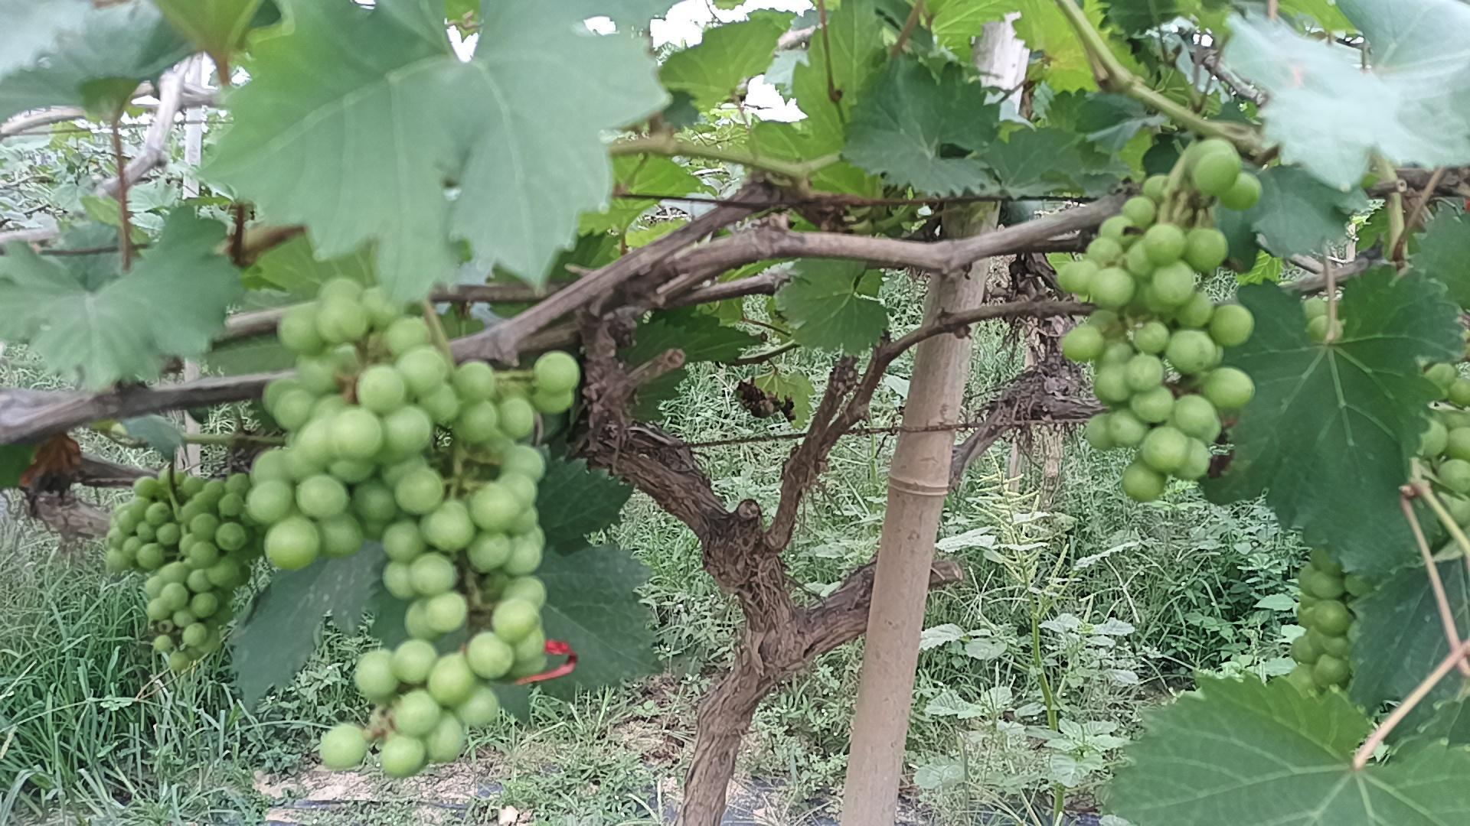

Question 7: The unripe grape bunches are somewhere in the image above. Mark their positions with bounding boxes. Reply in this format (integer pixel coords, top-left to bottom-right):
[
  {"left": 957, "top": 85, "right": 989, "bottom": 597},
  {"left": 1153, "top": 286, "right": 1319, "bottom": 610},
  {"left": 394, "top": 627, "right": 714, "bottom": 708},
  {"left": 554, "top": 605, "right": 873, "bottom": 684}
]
[
  {"left": 1057, "top": 138, "right": 1260, "bottom": 501},
  {"left": 1286, "top": 294, "right": 1469, "bottom": 699},
  {"left": 248, "top": 278, "right": 577, "bottom": 776},
  {"left": 107, "top": 471, "right": 259, "bottom": 670}
]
